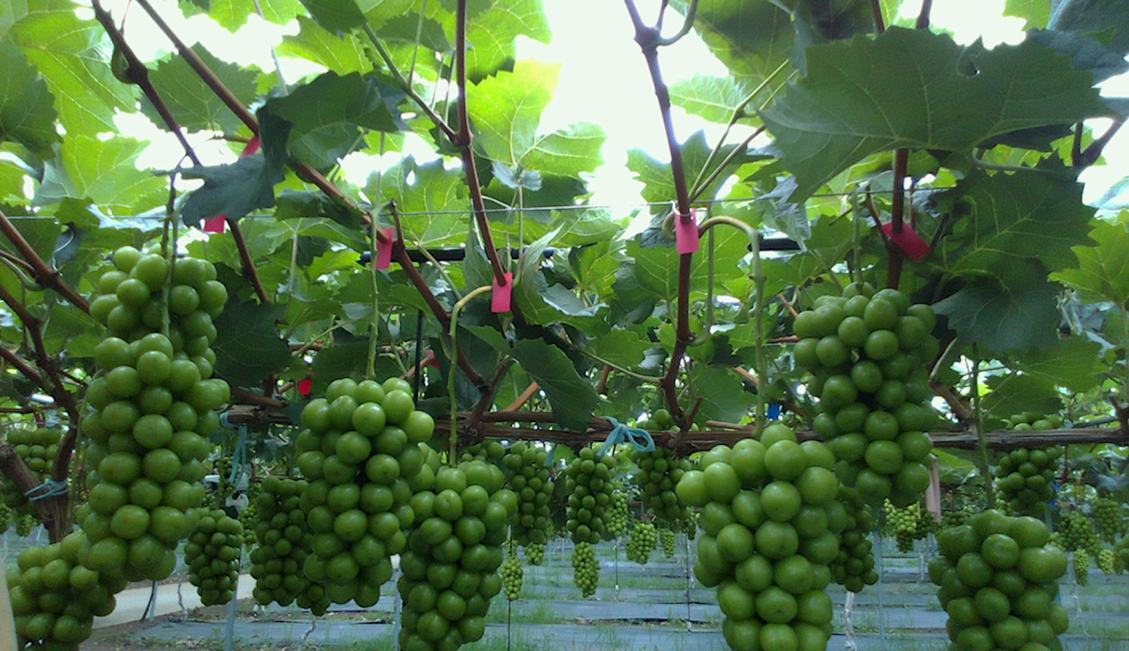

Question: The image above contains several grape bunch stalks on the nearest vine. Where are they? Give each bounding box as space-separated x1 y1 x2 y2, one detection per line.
447 284 491 468
972 344 997 509
366 200 407 380
849 183 890 293
697 215 767 442
172 188 190 272
162 260 171 339
62 368 102 539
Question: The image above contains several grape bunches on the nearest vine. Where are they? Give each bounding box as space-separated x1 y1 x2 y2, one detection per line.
793 281 939 509
675 423 847 650
927 509 1068 650
89 243 228 380
294 377 441 608
5 529 116 650
77 333 231 594
398 459 518 650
